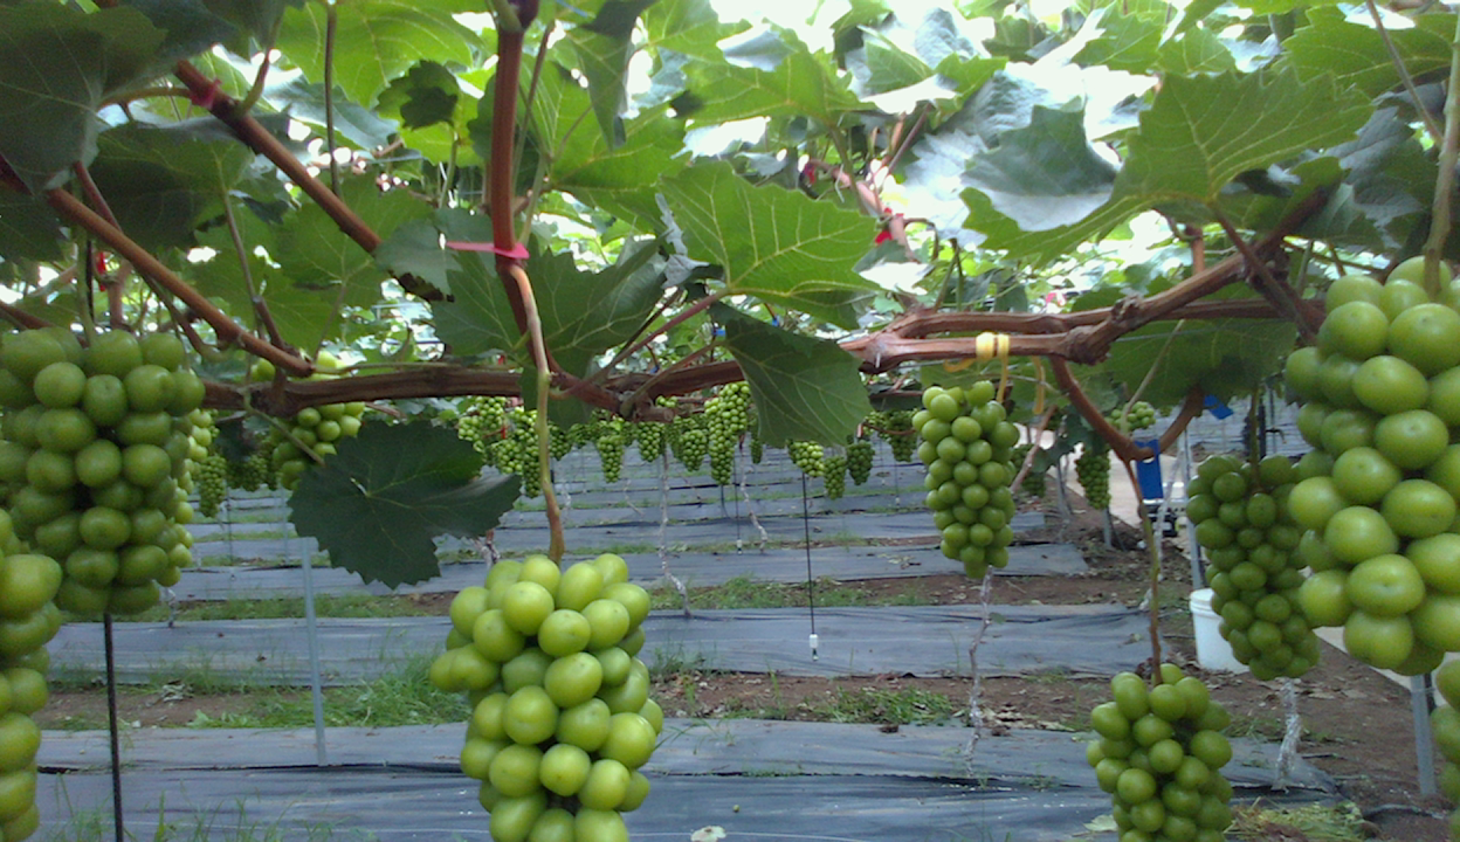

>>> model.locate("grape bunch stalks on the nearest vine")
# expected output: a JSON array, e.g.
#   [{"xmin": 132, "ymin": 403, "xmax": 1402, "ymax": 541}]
[
  {"xmin": 71, "ymin": 227, "xmax": 97, "ymax": 341},
  {"xmin": 514, "ymin": 271, "xmax": 563, "ymax": 566},
  {"xmin": 1425, "ymin": 22, "xmax": 1459, "ymax": 294}
]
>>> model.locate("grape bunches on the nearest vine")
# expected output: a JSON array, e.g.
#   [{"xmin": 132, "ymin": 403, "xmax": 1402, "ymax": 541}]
[
  {"xmin": 1, "ymin": 505, "xmax": 64, "ymax": 841},
  {"xmin": 0, "ymin": 326, "xmax": 206, "ymax": 621},
  {"xmin": 1285, "ymin": 255, "xmax": 1459, "ymax": 675},
  {"xmin": 429, "ymin": 552, "xmax": 666, "ymax": 841}
]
